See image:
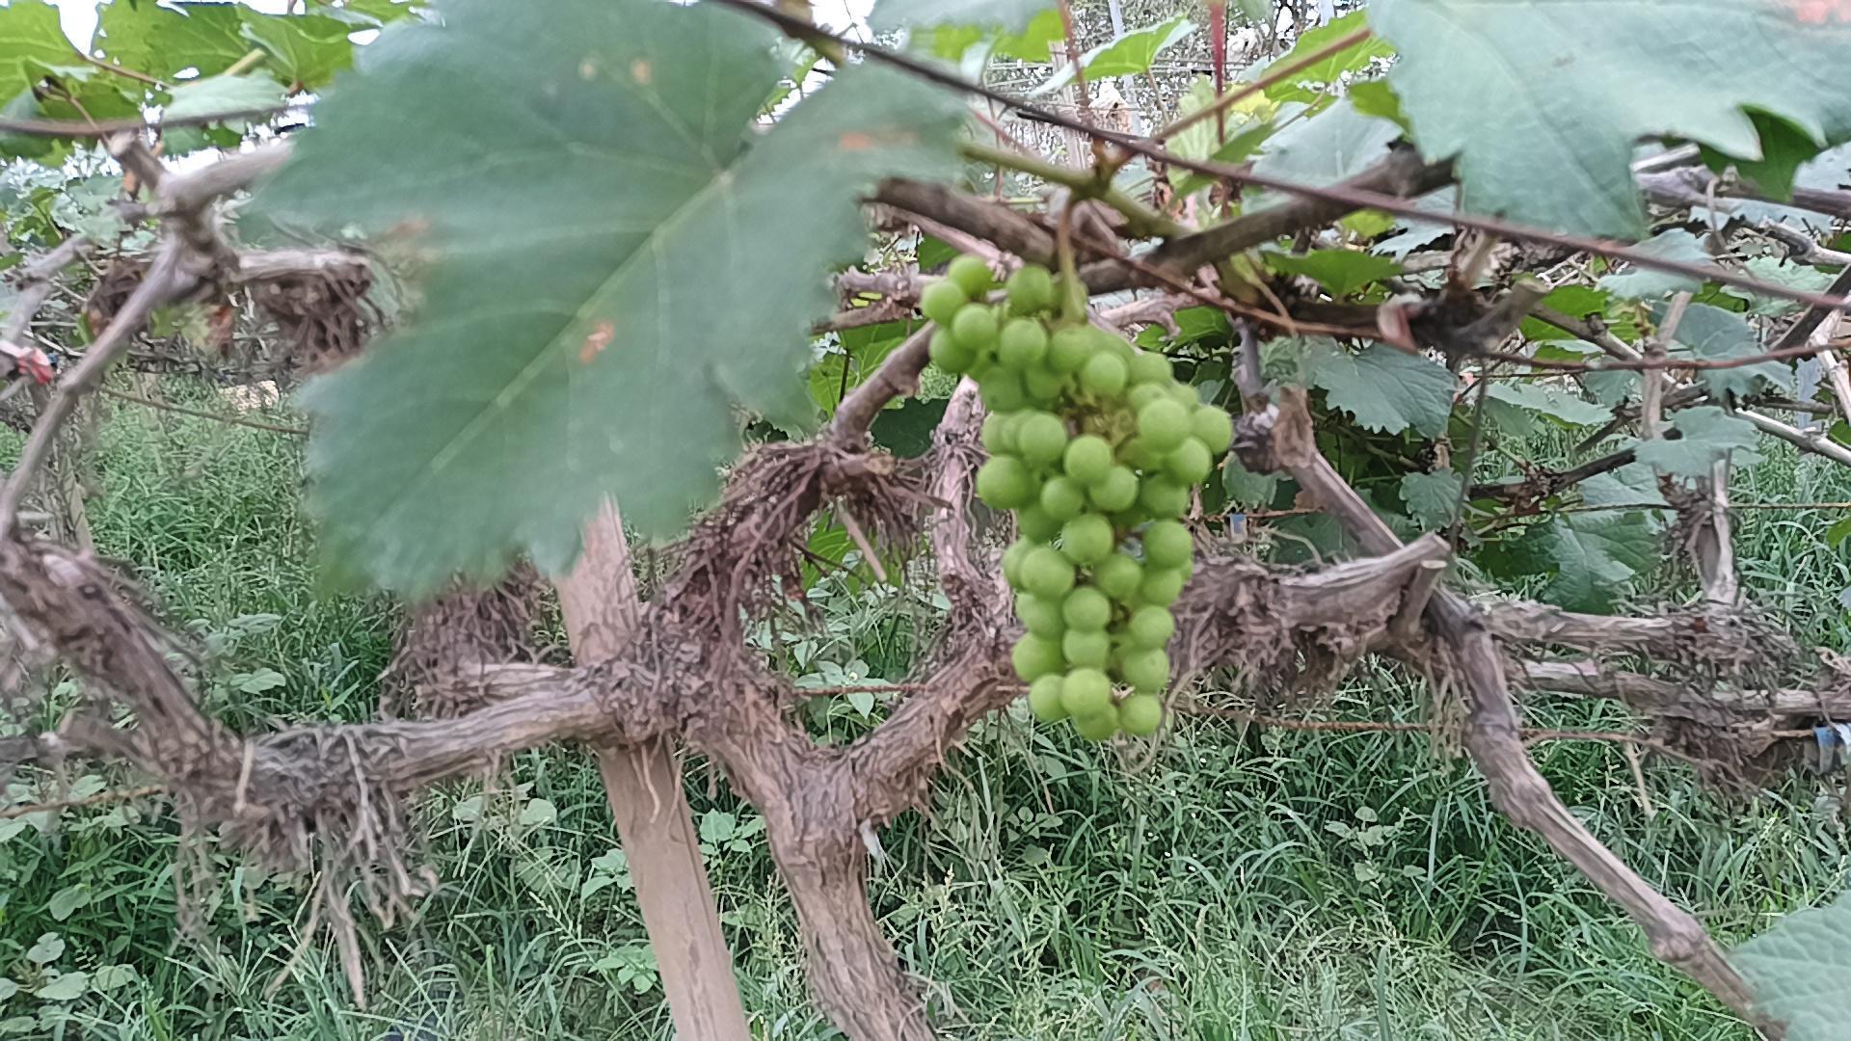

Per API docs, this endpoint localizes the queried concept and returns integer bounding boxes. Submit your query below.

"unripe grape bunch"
[923,255,1238,741]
